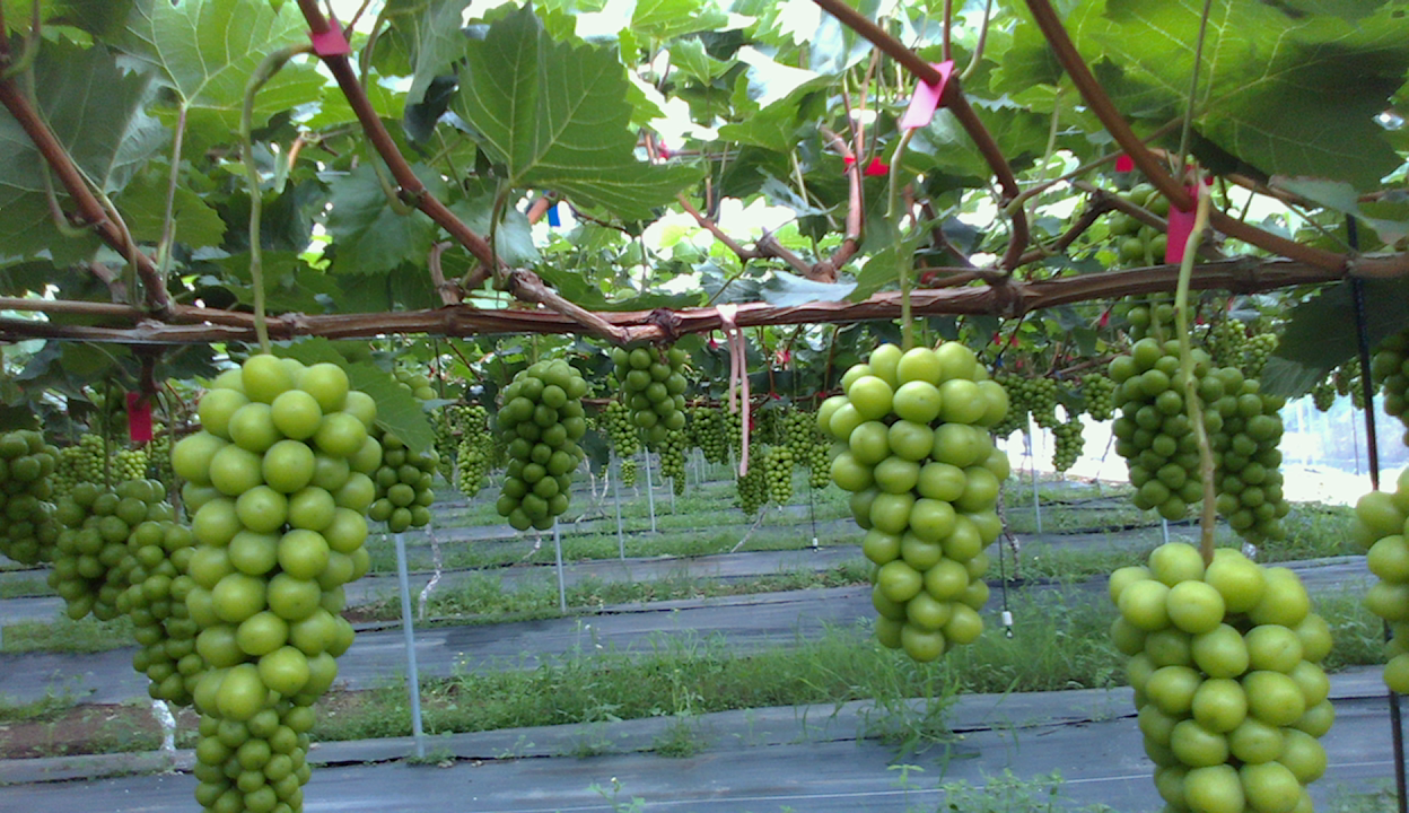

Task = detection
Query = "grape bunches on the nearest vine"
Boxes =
[819,340,1009,662]
[1354,465,1407,693]
[1105,542,1336,812]
[170,352,382,722]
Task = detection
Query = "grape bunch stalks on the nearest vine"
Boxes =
[1171,192,1215,565]
[238,43,317,352]
[884,129,917,351]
